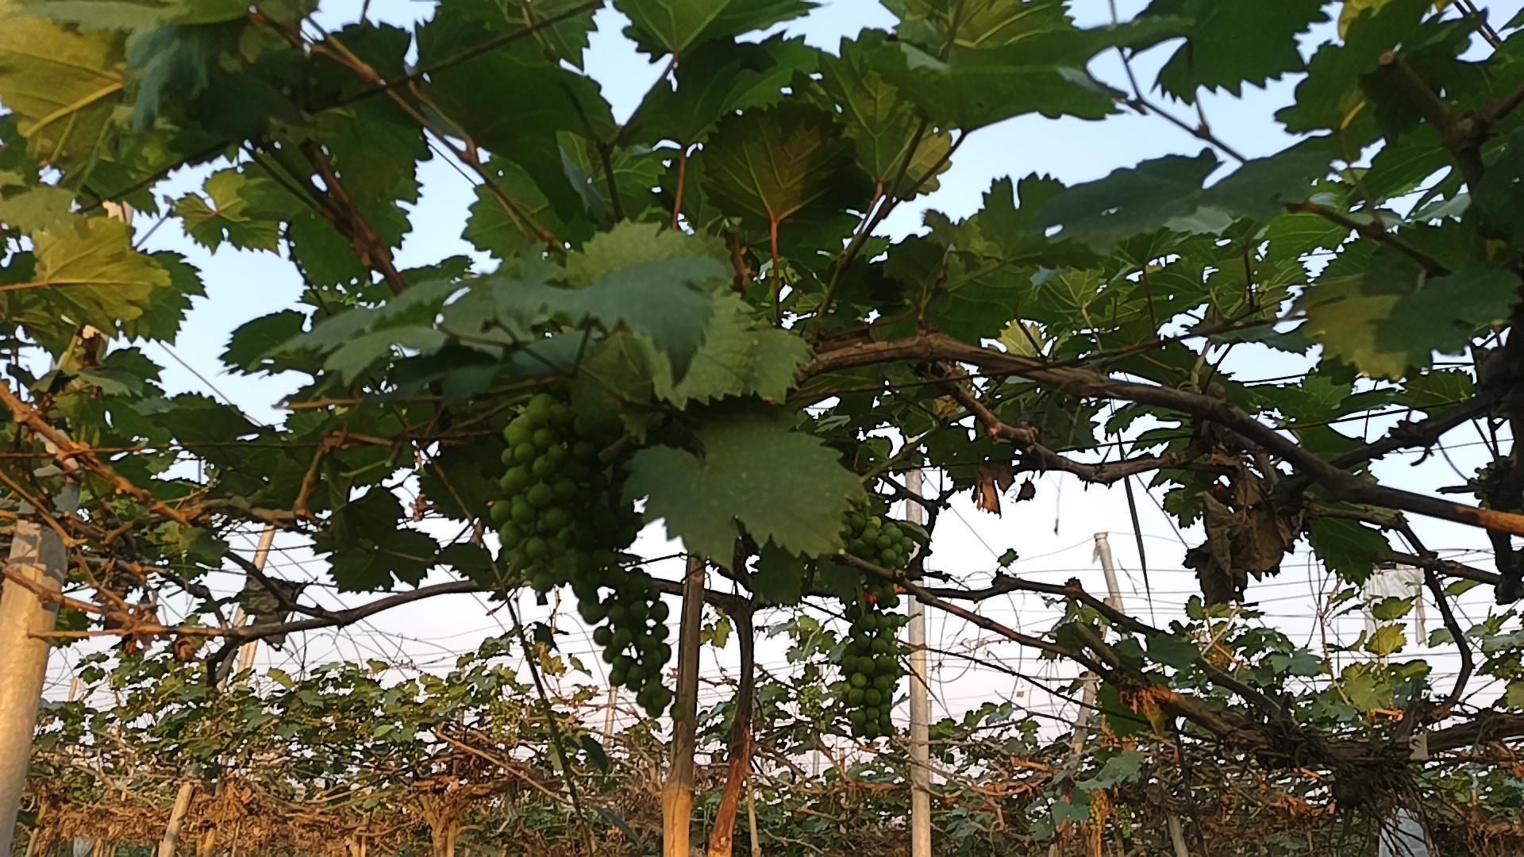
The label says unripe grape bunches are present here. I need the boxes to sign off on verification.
[572,566,687,721]
[795,682,827,723]
[490,394,642,594]
[839,511,916,609]
[841,602,911,738]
